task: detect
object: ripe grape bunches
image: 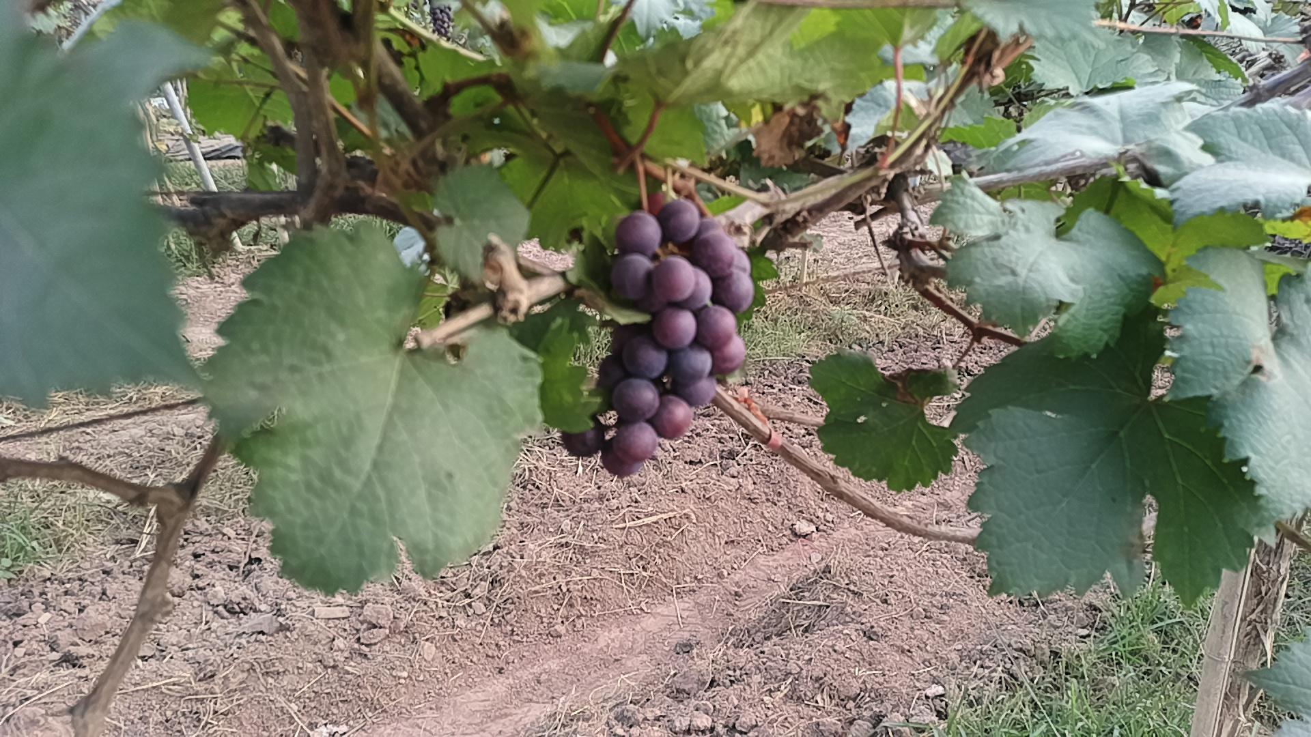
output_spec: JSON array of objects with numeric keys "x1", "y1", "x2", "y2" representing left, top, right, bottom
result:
[
  {"x1": 563, "y1": 199, "x2": 754, "y2": 476},
  {"x1": 423, "y1": 0, "x2": 455, "y2": 42}
]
